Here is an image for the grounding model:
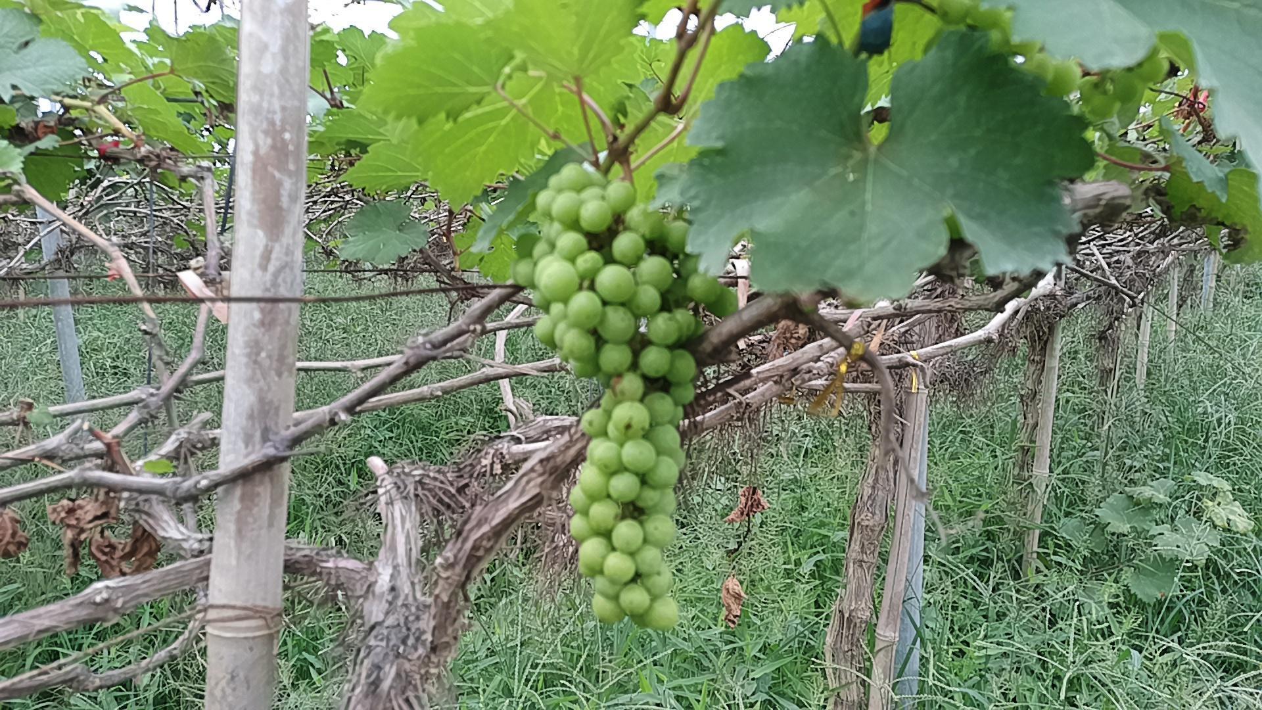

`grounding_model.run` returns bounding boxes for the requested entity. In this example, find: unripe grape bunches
[513,164,737,629]
[922,0,1168,124]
